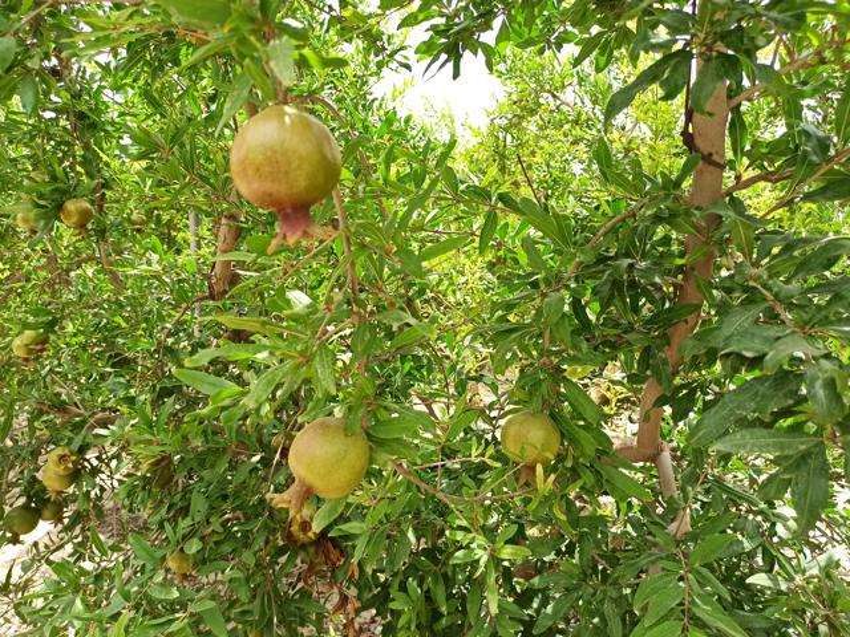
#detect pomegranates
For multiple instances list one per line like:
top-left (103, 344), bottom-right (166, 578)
top-left (12, 336), bottom-right (35, 365)
top-left (228, 106), bottom-right (341, 255)
top-left (167, 552), bottom-right (194, 581)
top-left (48, 446), bottom-right (80, 476)
top-left (290, 508), bottom-right (317, 545)
top-left (61, 198), bottom-right (96, 235)
top-left (41, 463), bottom-right (76, 502)
top-left (4, 506), bottom-right (39, 547)
top-left (499, 411), bottom-right (562, 490)
top-left (16, 212), bottom-right (37, 238)
top-left (41, 499), bottom-right (66, 528)
top-left (266, 418), bottom-right (369, 522)
top-left (129, 212), bottom-right (147, 232)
